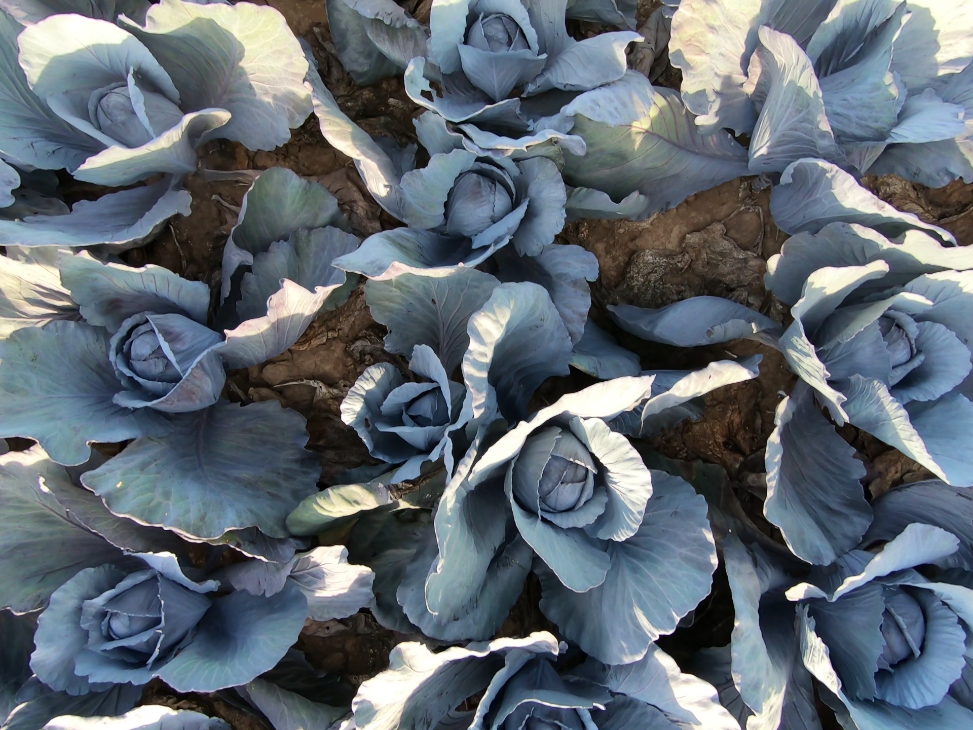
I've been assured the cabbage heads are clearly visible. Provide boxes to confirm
[518,432,590,509]
[105,577,191,647]
[450,174,513,237]
[98,86,182,154]
[502,689,586,729]
[399,387,461,439]
[835,313,913,392]
[470,12,528,83]
[133,325,205,389]
[826,578,925,667]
